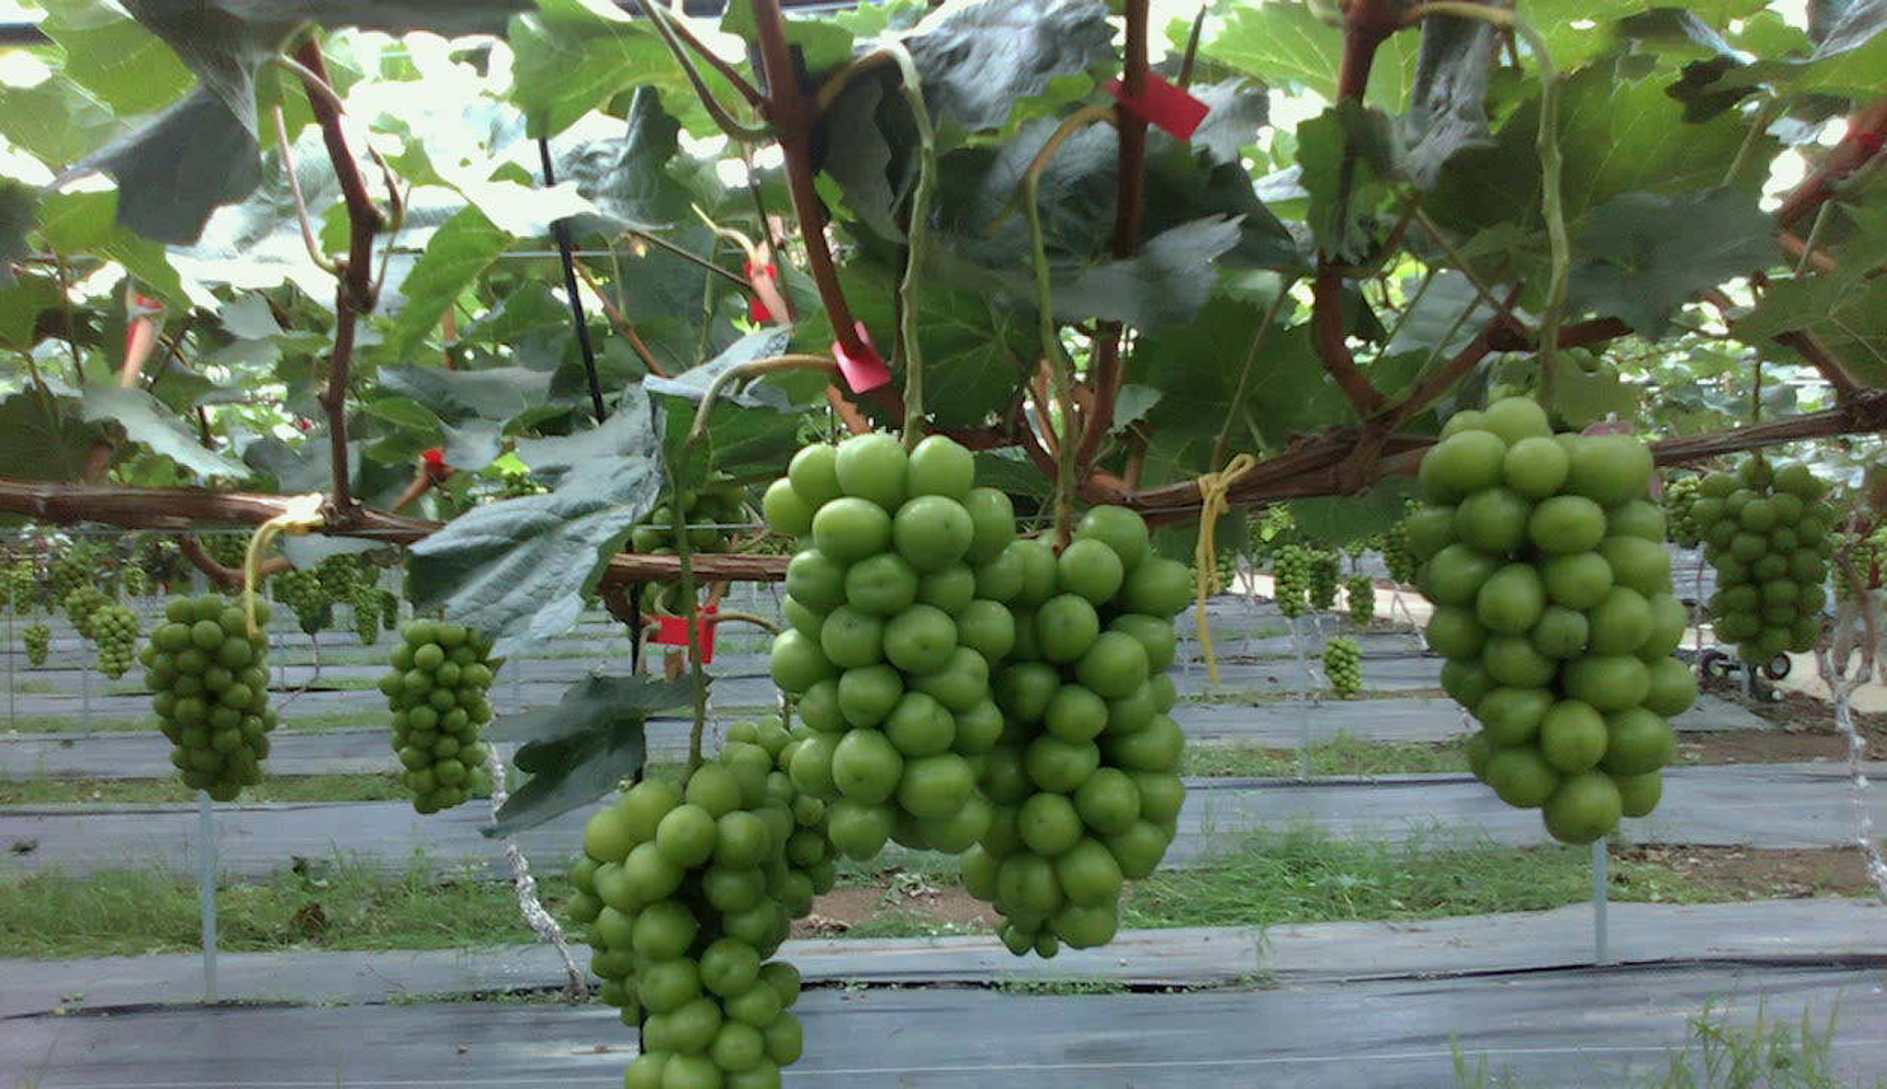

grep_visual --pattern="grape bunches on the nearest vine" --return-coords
[1408,395,1695,844]
[582,758,807,1087]
[762,431,1025,862]
[963,504,1194,947]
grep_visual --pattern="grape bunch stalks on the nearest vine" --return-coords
[1385,2,1568,419]
[674,354,841,783]
[1022,109,1119,558]
[812,45,936,454]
